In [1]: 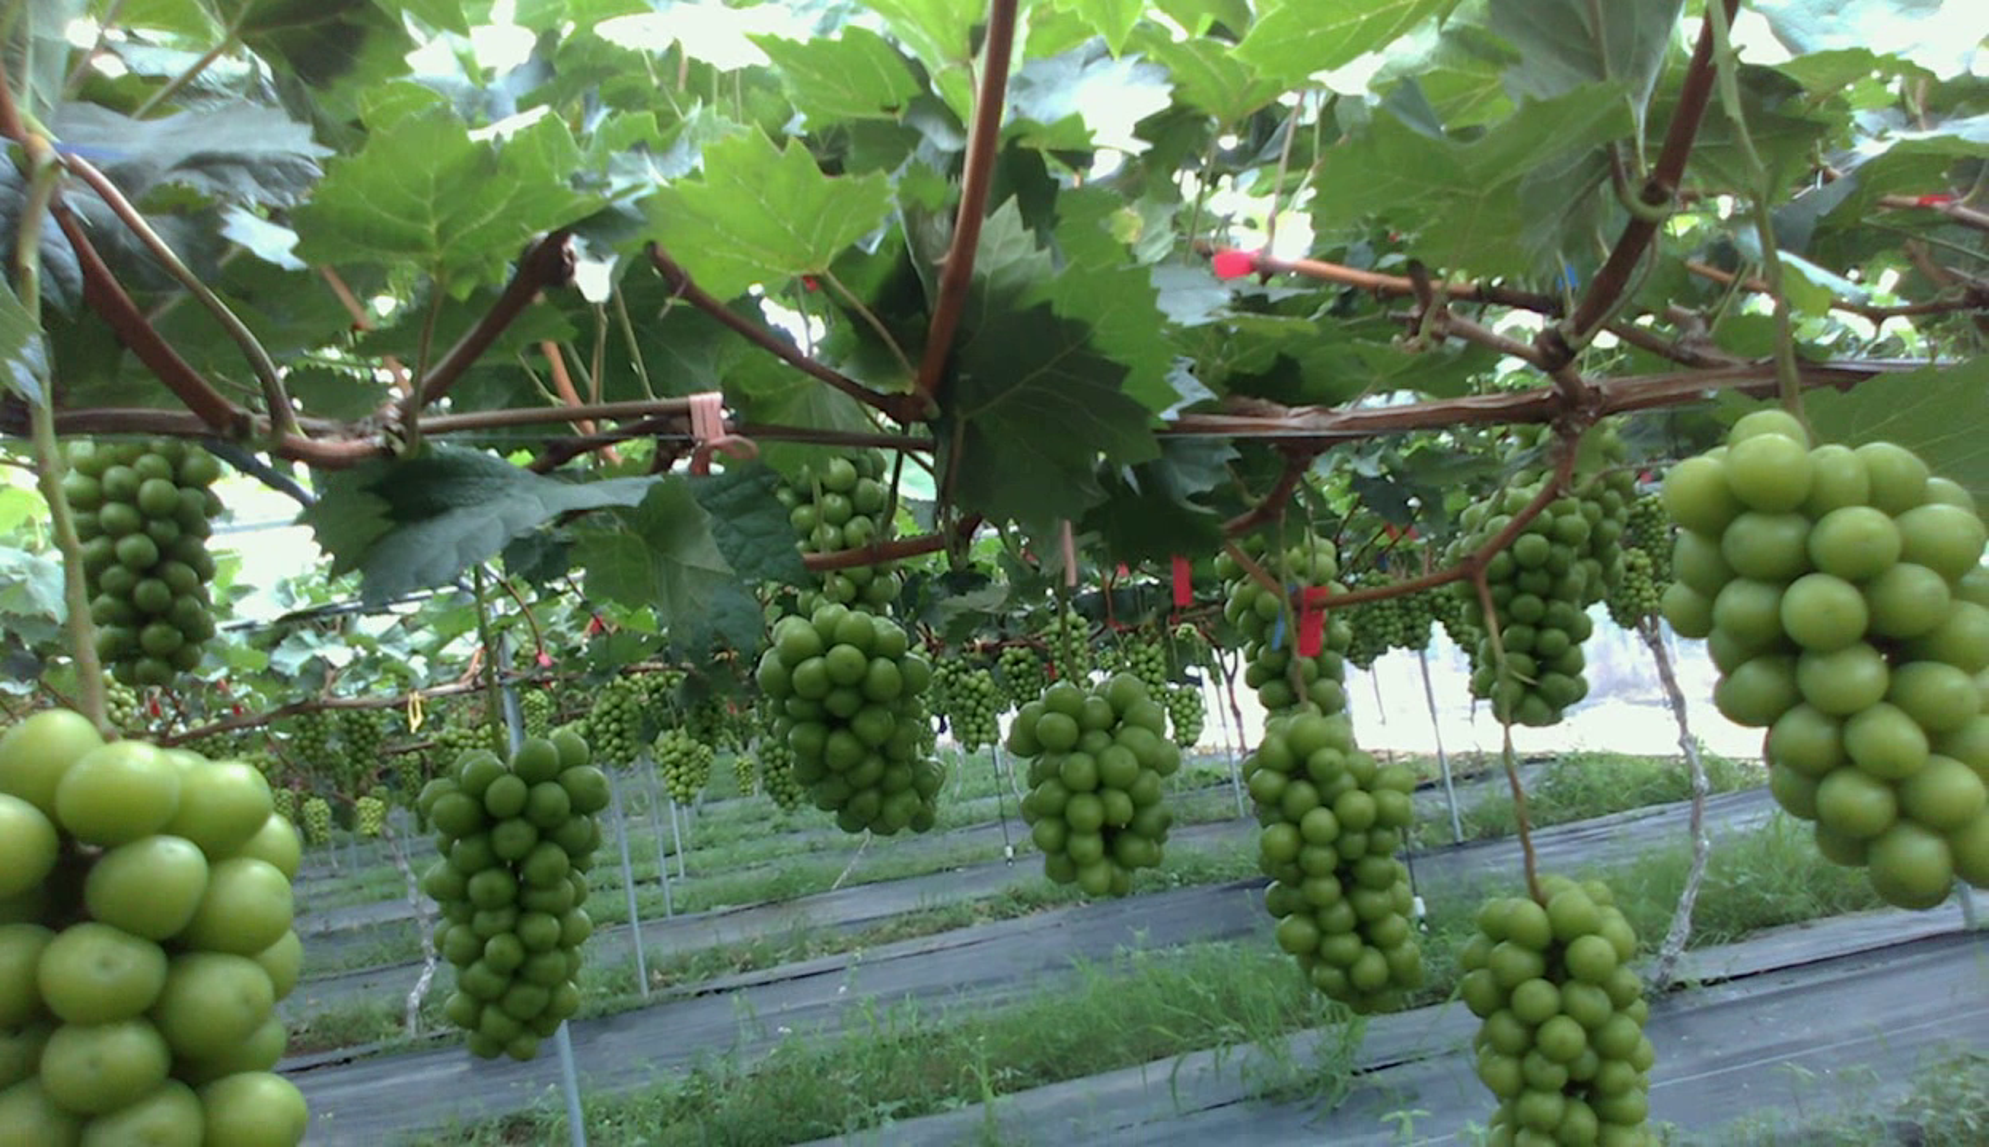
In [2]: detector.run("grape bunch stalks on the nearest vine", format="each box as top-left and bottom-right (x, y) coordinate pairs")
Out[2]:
(1708, 0), (1815, 448)
(14, 135), (115, 736)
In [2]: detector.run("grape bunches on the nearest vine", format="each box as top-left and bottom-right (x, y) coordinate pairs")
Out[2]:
(1657, 408), (1987, 911)
(0, 707), (309, 1145)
